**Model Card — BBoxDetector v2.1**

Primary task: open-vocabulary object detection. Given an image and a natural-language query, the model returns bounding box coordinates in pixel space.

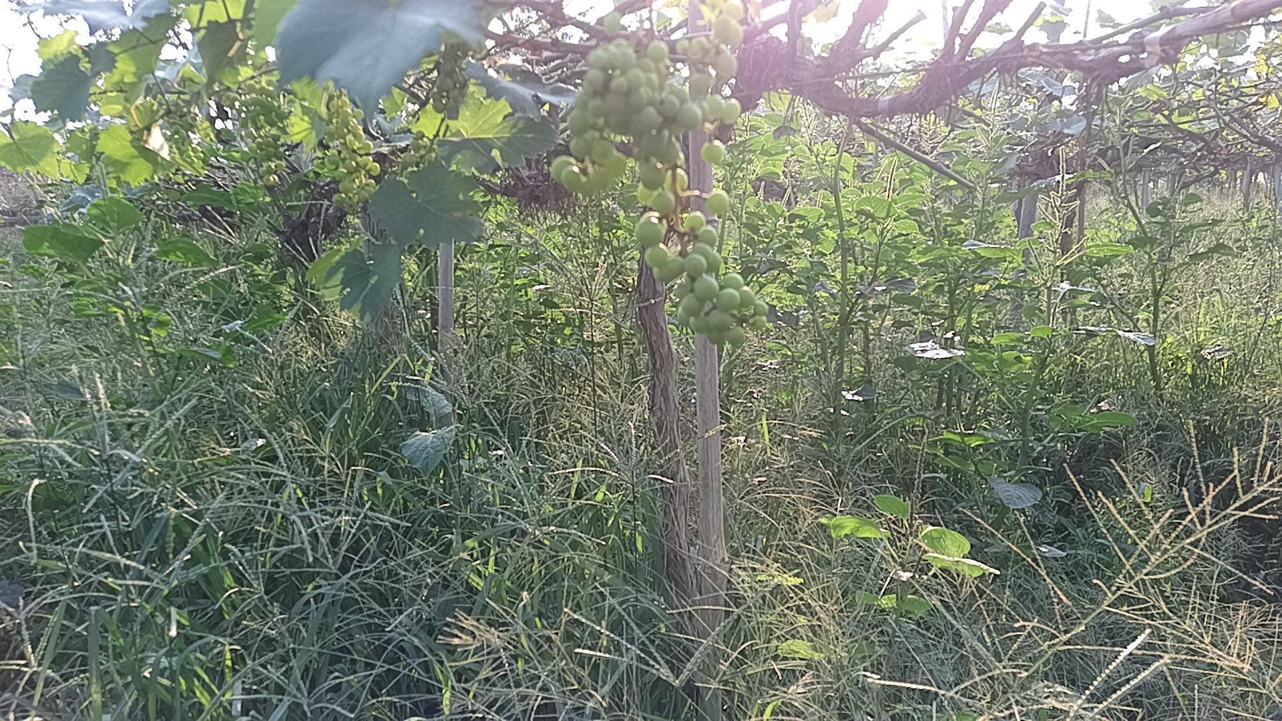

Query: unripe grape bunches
[400,130,437,171]
[160,111,204,168]
[550,0,771,346]
[323,94,381,214]
[220,83,289,186]
[428,41,468,120]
